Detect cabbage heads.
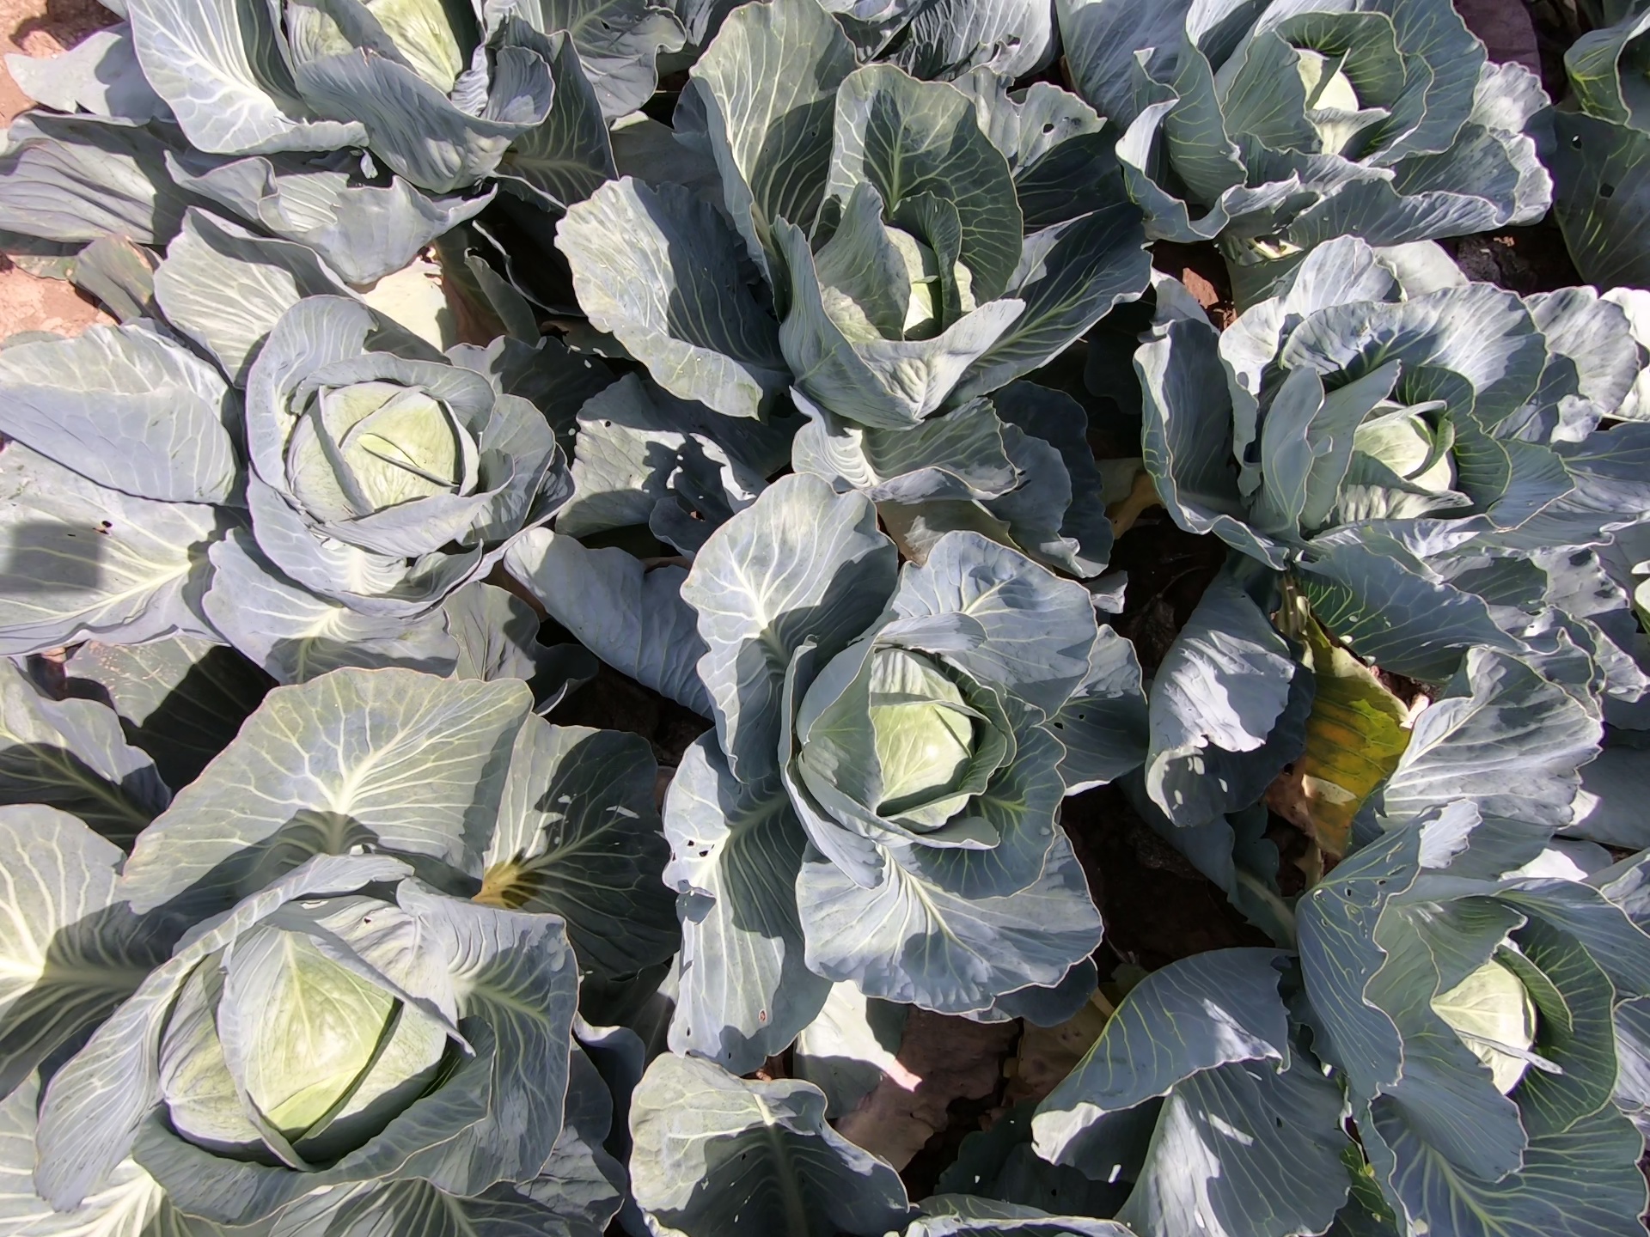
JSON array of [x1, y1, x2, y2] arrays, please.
[[808, 228, 976, 417], [162, 899, 456, 1180], [288, 377, 480, 553], [1303, 393, 1464, 545], [800, 646, 986, 843], [1234, 47, 1368, 193], [1390, 911, 1540, 1104], [281, 2, 484, 133]]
